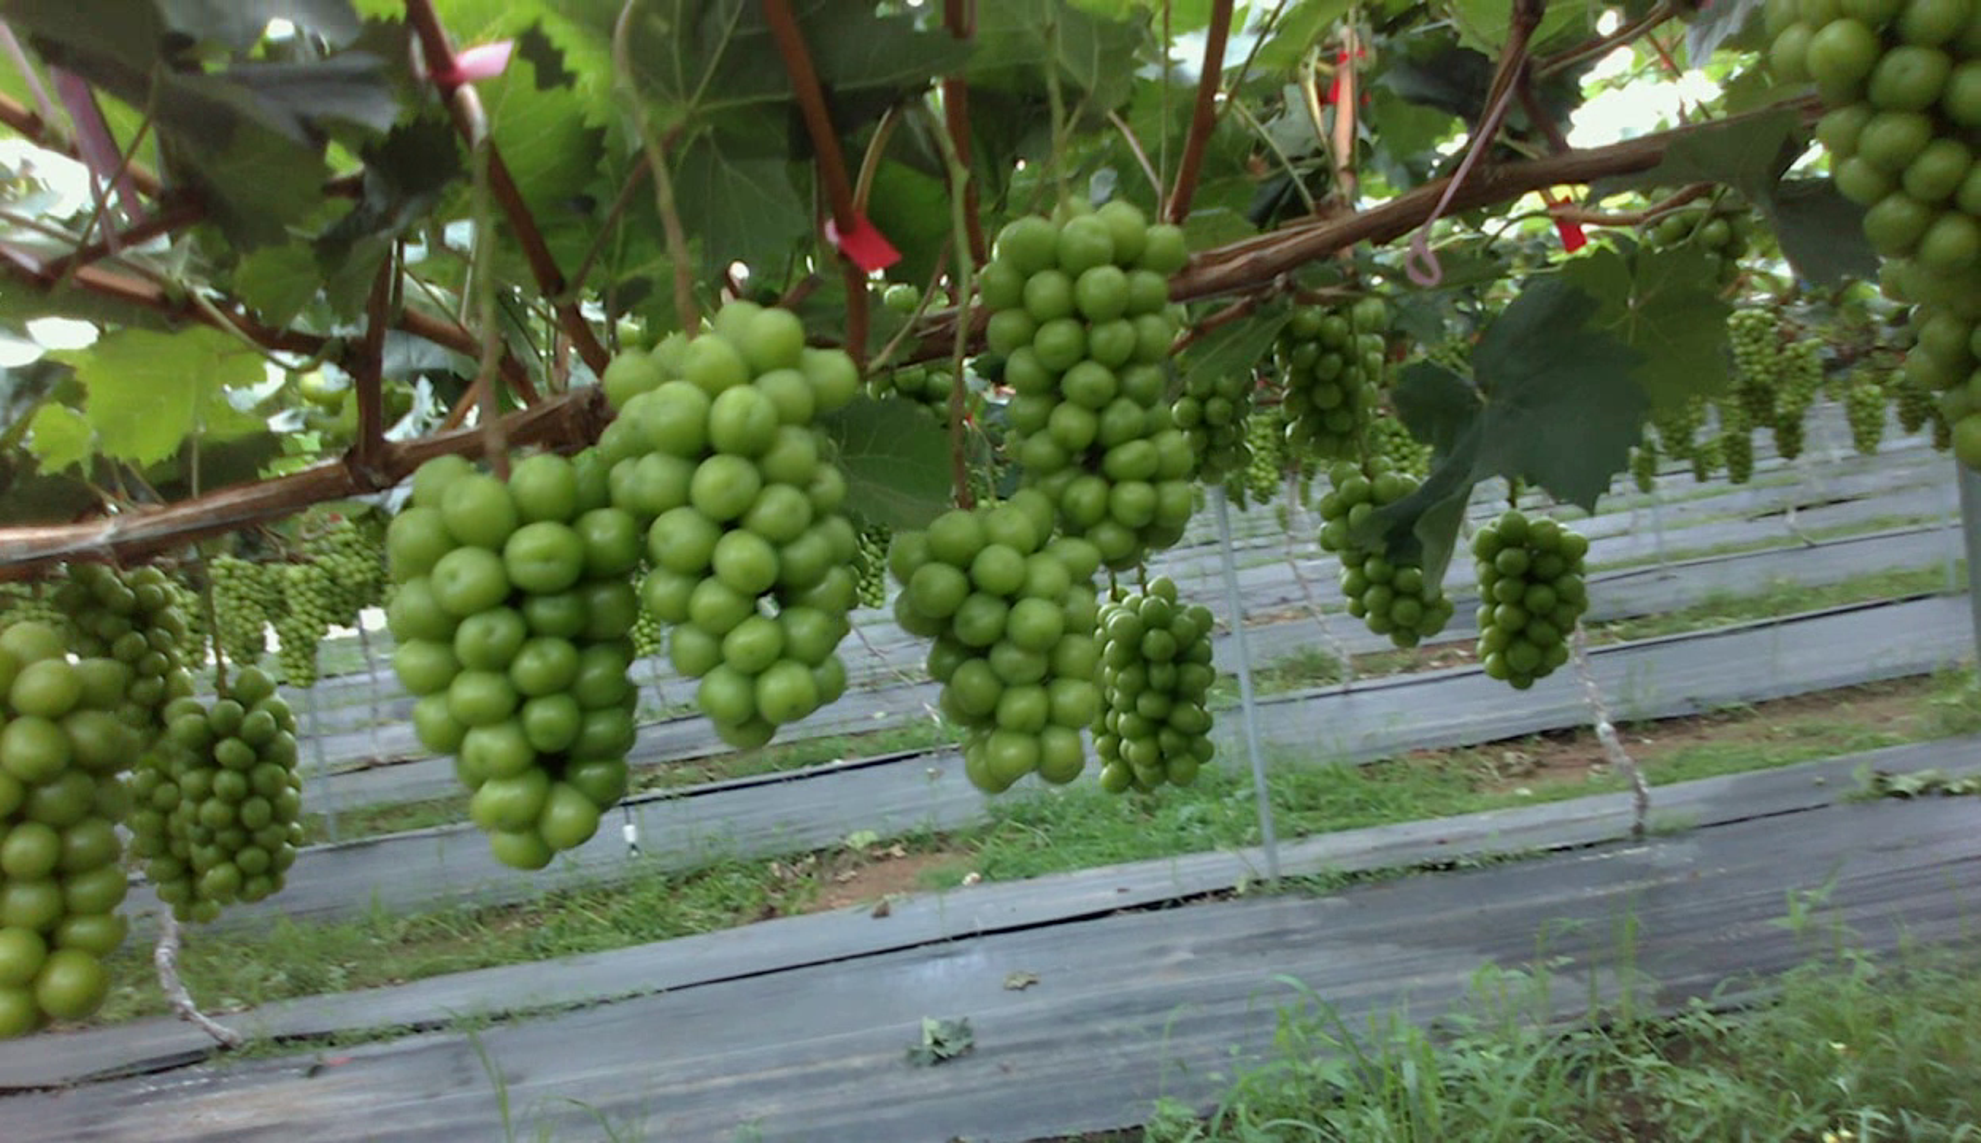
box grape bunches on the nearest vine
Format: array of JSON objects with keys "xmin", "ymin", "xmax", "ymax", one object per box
[
  {"xmin": 1762, "ymin": 0, "xmax": 1979, "ymax": 276},
  {"xmin": 389, "ymin": 451, "xmax": 641, "ymax": 868},
  {"xmin": 2, "ymin": 622, "xmax": 138, "ymax": 1037},
  {"xmin": 600, "ymin": 302, "xmax": 857, "ymax": 752},
  {"xmin": 981, "ymin": 198, "xmax": 1198, "ymax": 568},
  {"xmin": 890, "ymin": 491, "xmax": 1098, "ymax": 795}
]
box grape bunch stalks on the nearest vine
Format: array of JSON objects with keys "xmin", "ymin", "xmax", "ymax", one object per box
[
  {"xmin": 852, "ymin": 98, "xmax": 971, "ymax": 508},
  {"xmin": 451, "ymin": 81, "xmax": 508, "ymax": 481},
  {"xmin": 1040, "ymin": 2, "xmax": 1070, "ymax": 222},
  {"xmin": 613, "ymin": 10, "xmax": 698, "ymax": 338}
]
